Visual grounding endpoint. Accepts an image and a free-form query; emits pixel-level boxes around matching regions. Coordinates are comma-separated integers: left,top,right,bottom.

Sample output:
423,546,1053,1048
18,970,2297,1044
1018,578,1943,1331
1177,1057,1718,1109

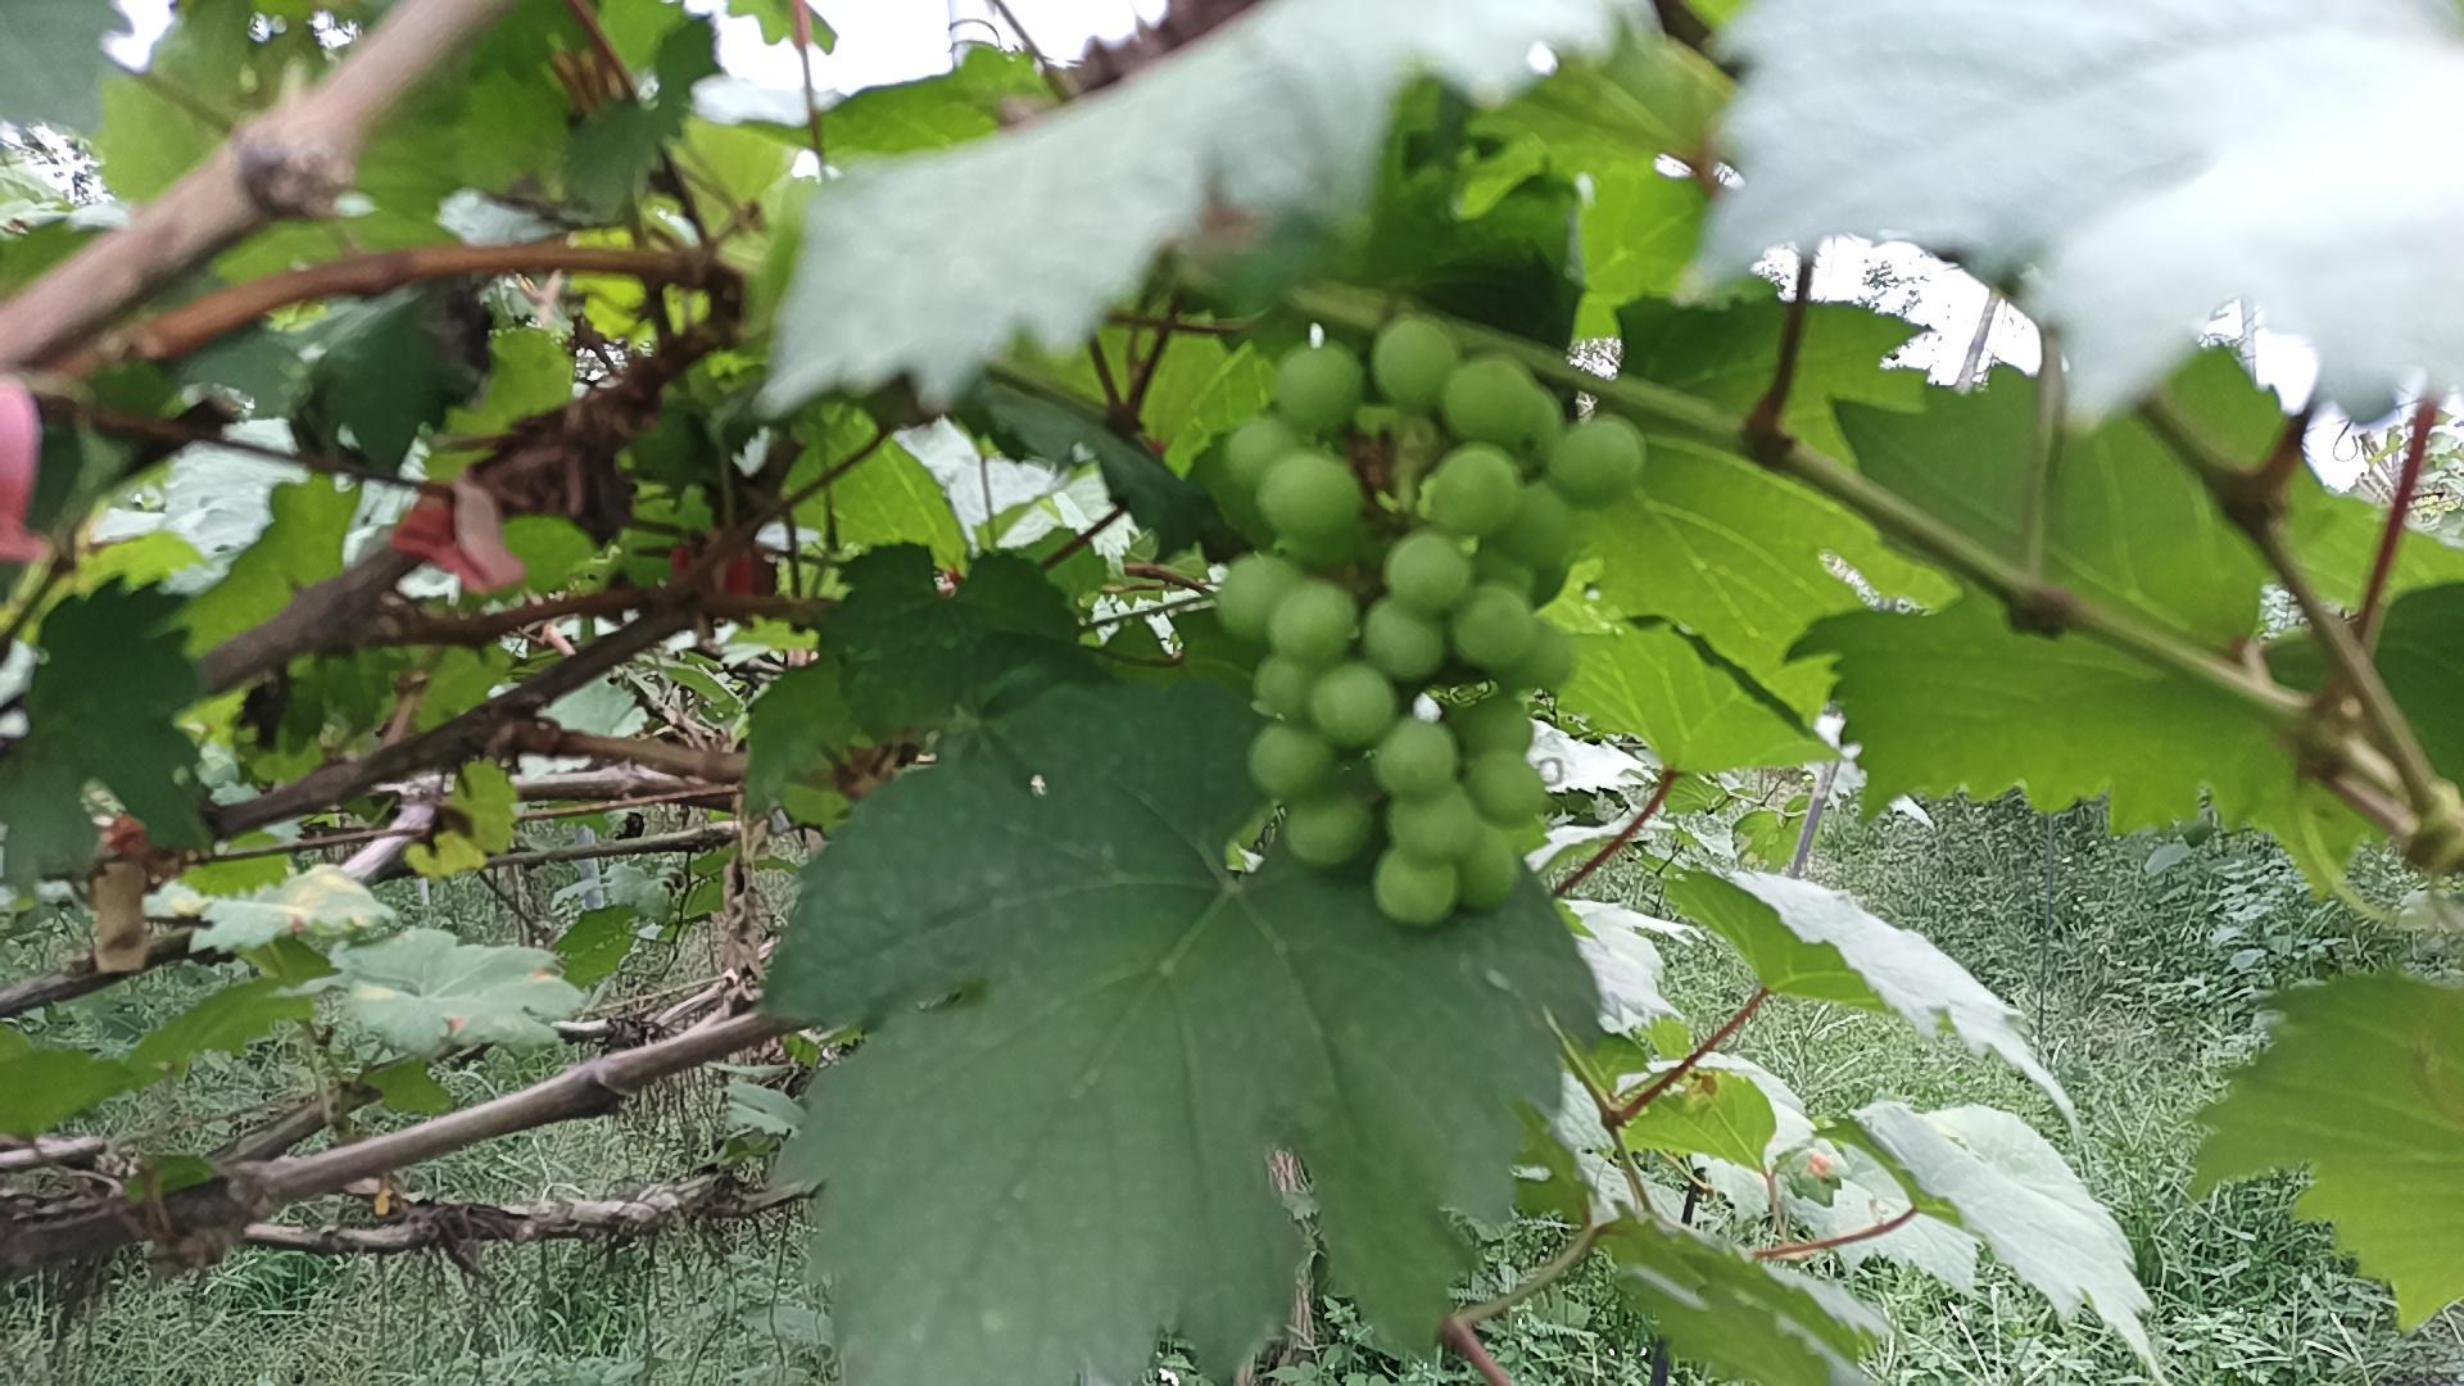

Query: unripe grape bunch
1217,318,1640,925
